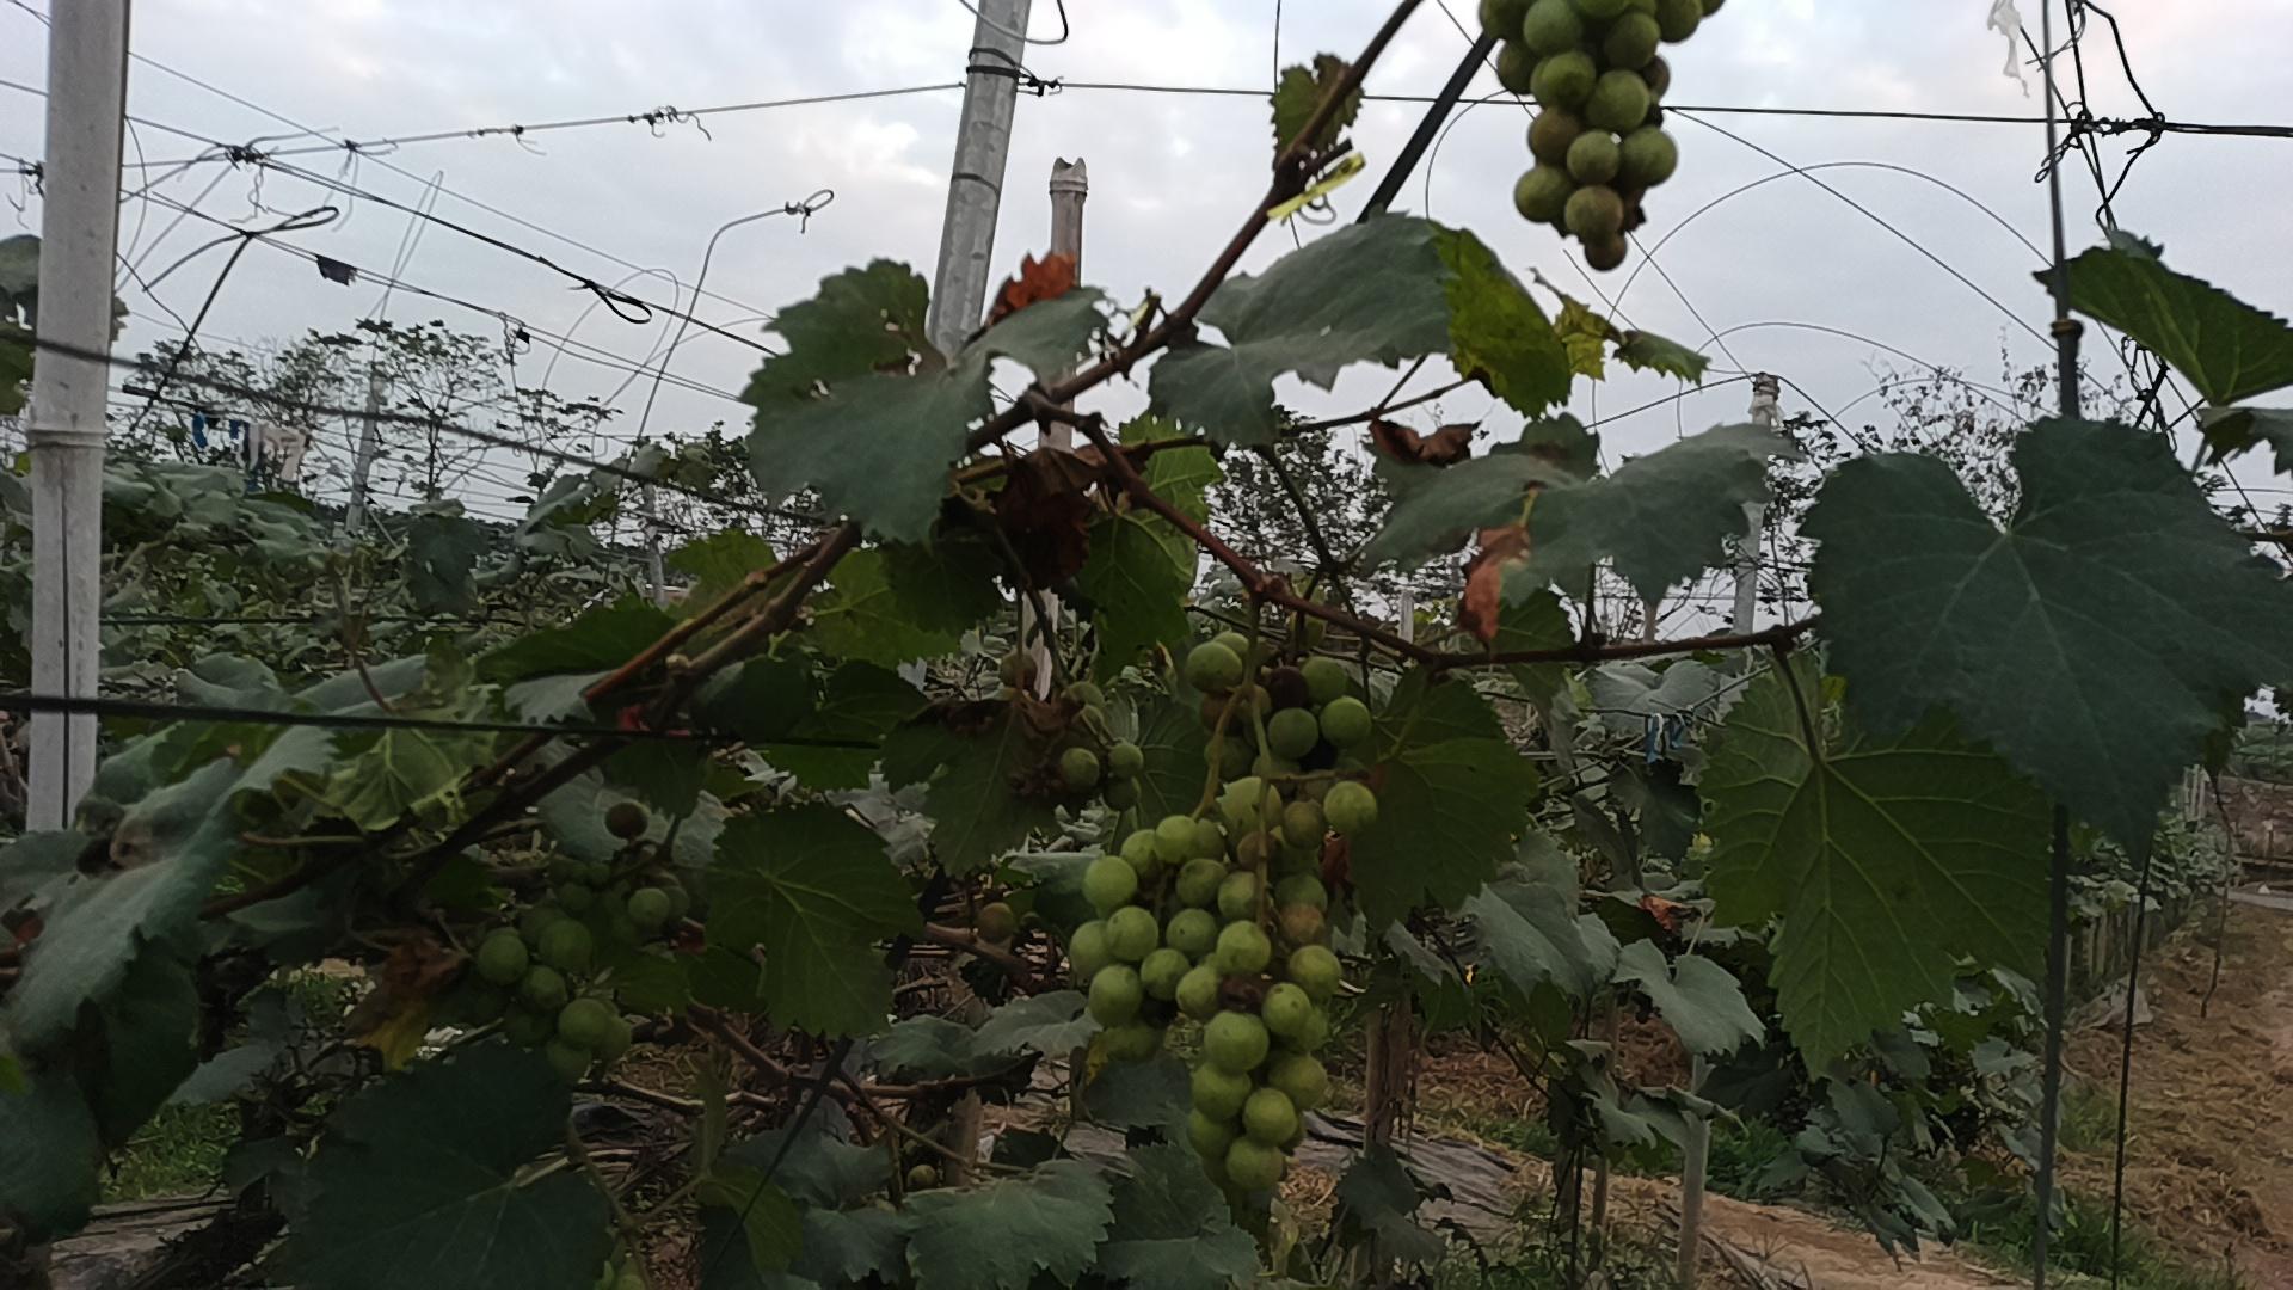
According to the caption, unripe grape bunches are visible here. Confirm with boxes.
[1069,622,1377,1217]
[1004,653,1142,810]
[475,800,683,1081]
[1482,0,1721,269]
